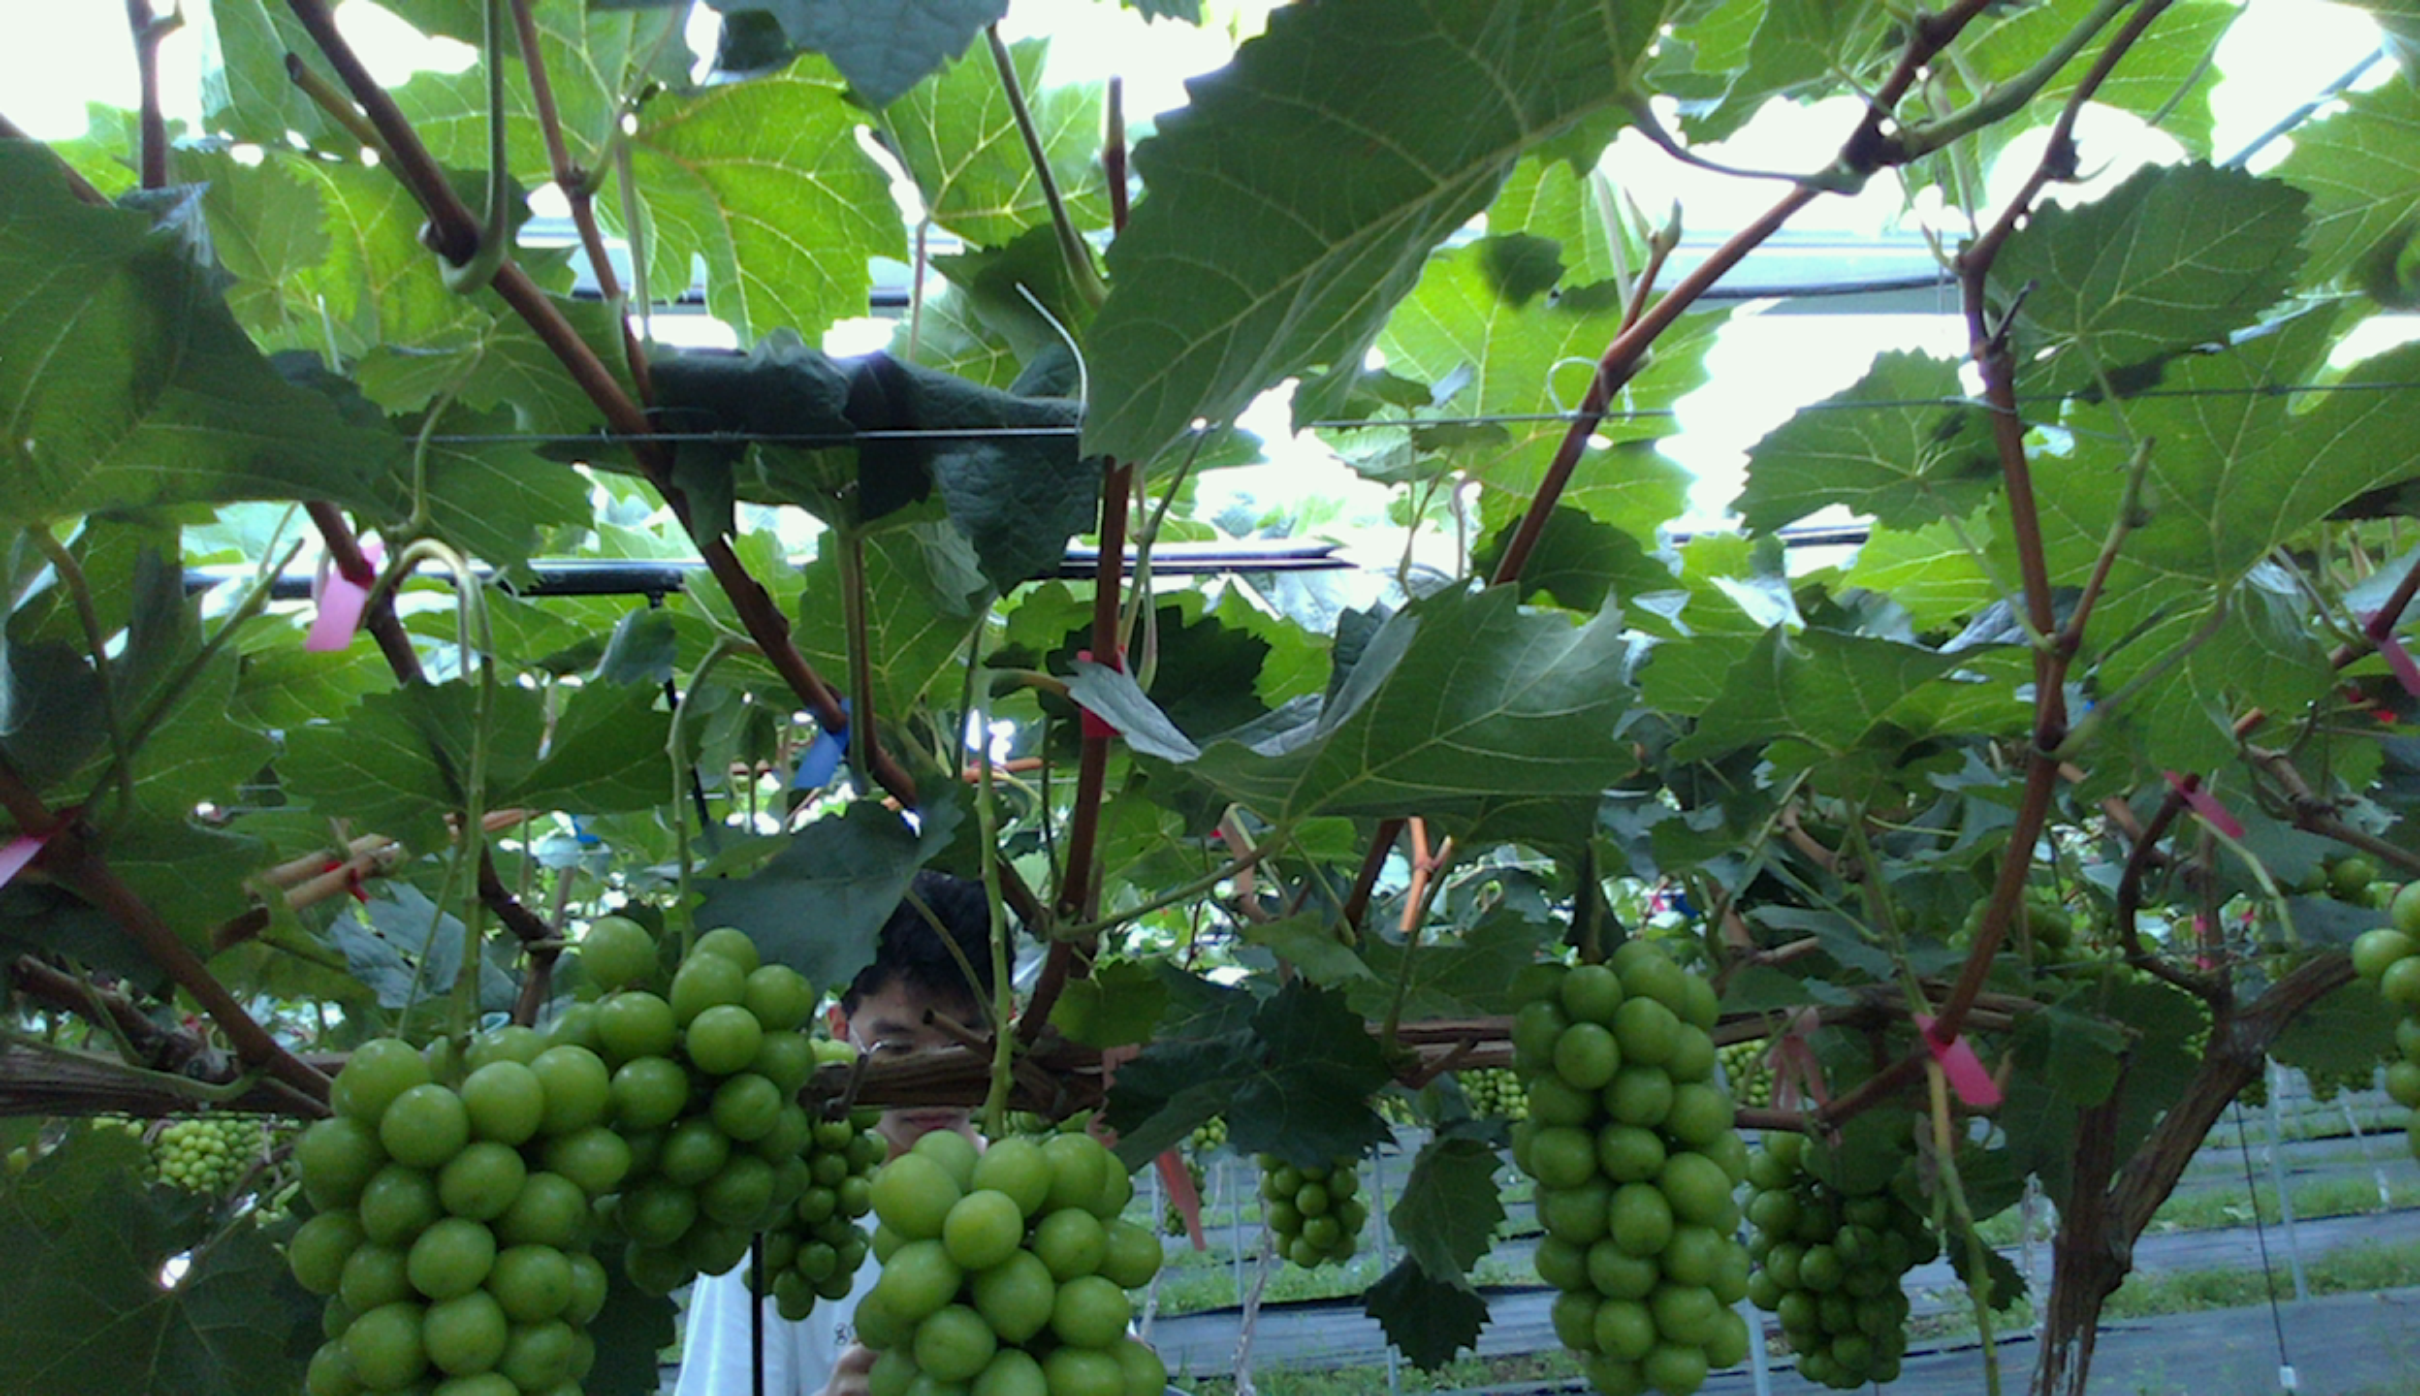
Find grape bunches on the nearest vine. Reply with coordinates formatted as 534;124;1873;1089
289;1024;630;1394
545;915;816;1301
851;1130;1165;1394
1503;938;1751;1394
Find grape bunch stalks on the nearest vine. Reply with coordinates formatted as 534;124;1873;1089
1580;836;1606;966
968;714;1014;1150
665;632;762;960
382;539;494;1090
